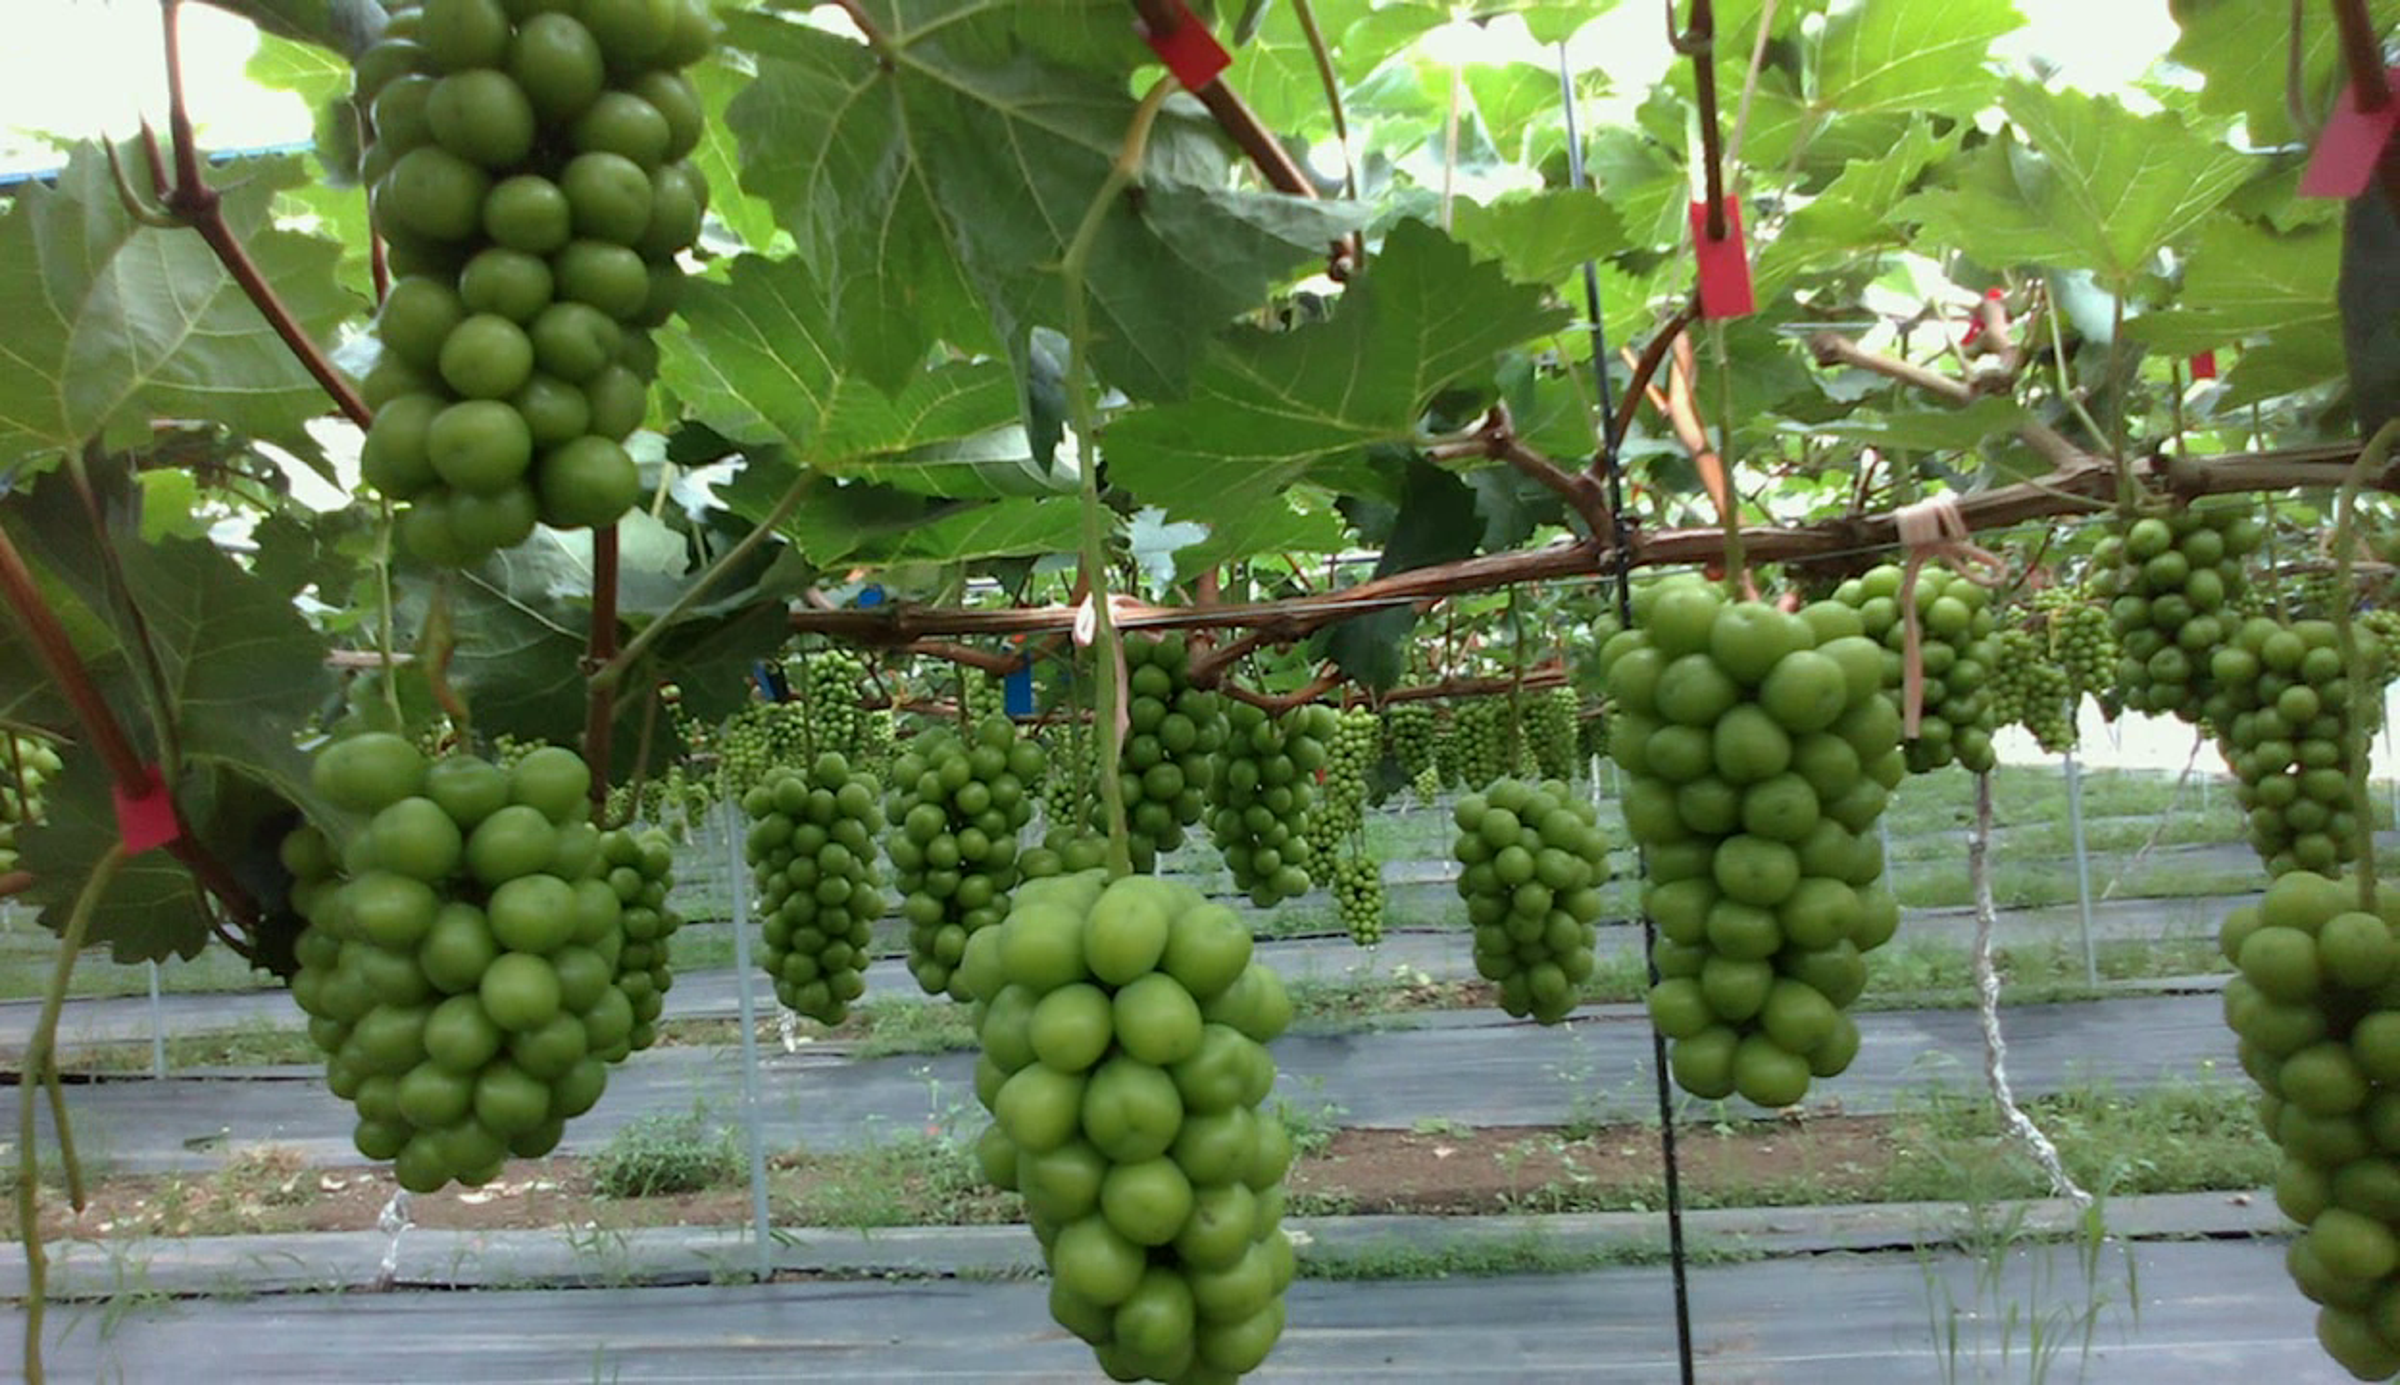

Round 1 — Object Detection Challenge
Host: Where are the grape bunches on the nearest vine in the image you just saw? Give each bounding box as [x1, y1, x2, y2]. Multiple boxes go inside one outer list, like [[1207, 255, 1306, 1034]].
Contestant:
[[348, 0, 713, 569], [2217, 871, 2398, 1383], [960, 869, 1294, 1383], [290, 729, 633, 1195], [1600, 577, 1906, 1110]]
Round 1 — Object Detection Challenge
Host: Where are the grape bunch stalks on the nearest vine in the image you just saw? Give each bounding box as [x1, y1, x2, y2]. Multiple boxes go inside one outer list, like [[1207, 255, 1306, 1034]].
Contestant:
[[2333, 415, 2398, 914], [1063, 73, 1177, 885], [1710, 319, 1748, 602], [17, 839, 123, 1383], [429, 571, 475, 754]]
